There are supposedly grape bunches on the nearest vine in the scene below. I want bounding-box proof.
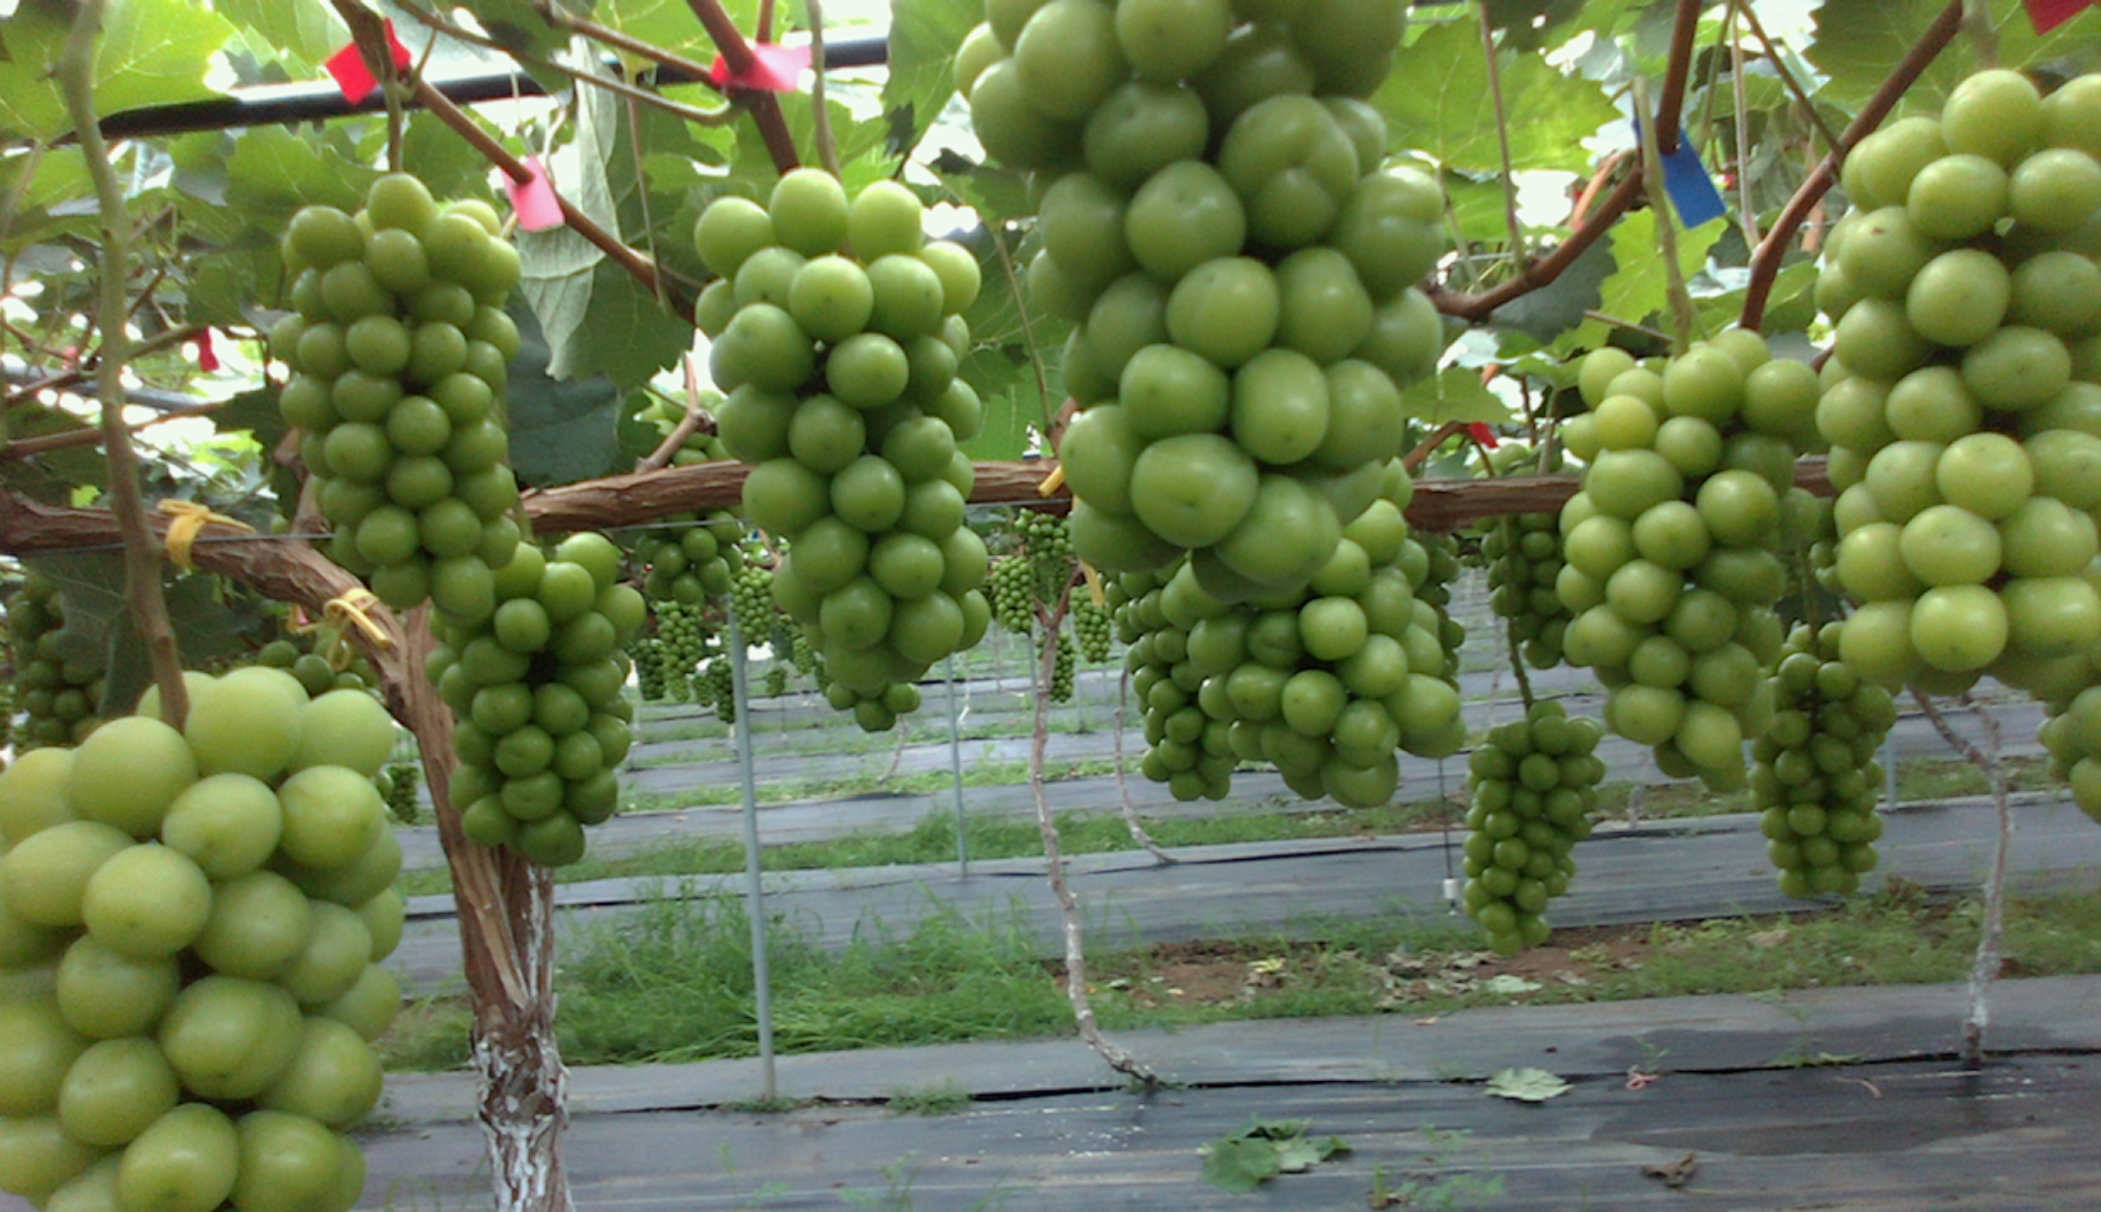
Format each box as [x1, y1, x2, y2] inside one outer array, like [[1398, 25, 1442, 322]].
[[1552, 328, 1823, 795], [695, 168, 988, 694], [1162, 456, 1468, 808], [953, 0, 1446, 601], [426, 532, 645, 869], [1811, 69, 2099, 700], [264, 173, 525, 626], [0, 667, 404, 1210]]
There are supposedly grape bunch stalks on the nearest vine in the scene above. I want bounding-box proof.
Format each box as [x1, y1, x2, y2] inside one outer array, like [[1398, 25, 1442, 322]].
[[517, 498, 539, 545], [365, 10, 401, 168], [1956, 2, 2005, 64], [805, 0, 840, 175], [37, 2, 189, 727], [1630, 79, 1690, 357]]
